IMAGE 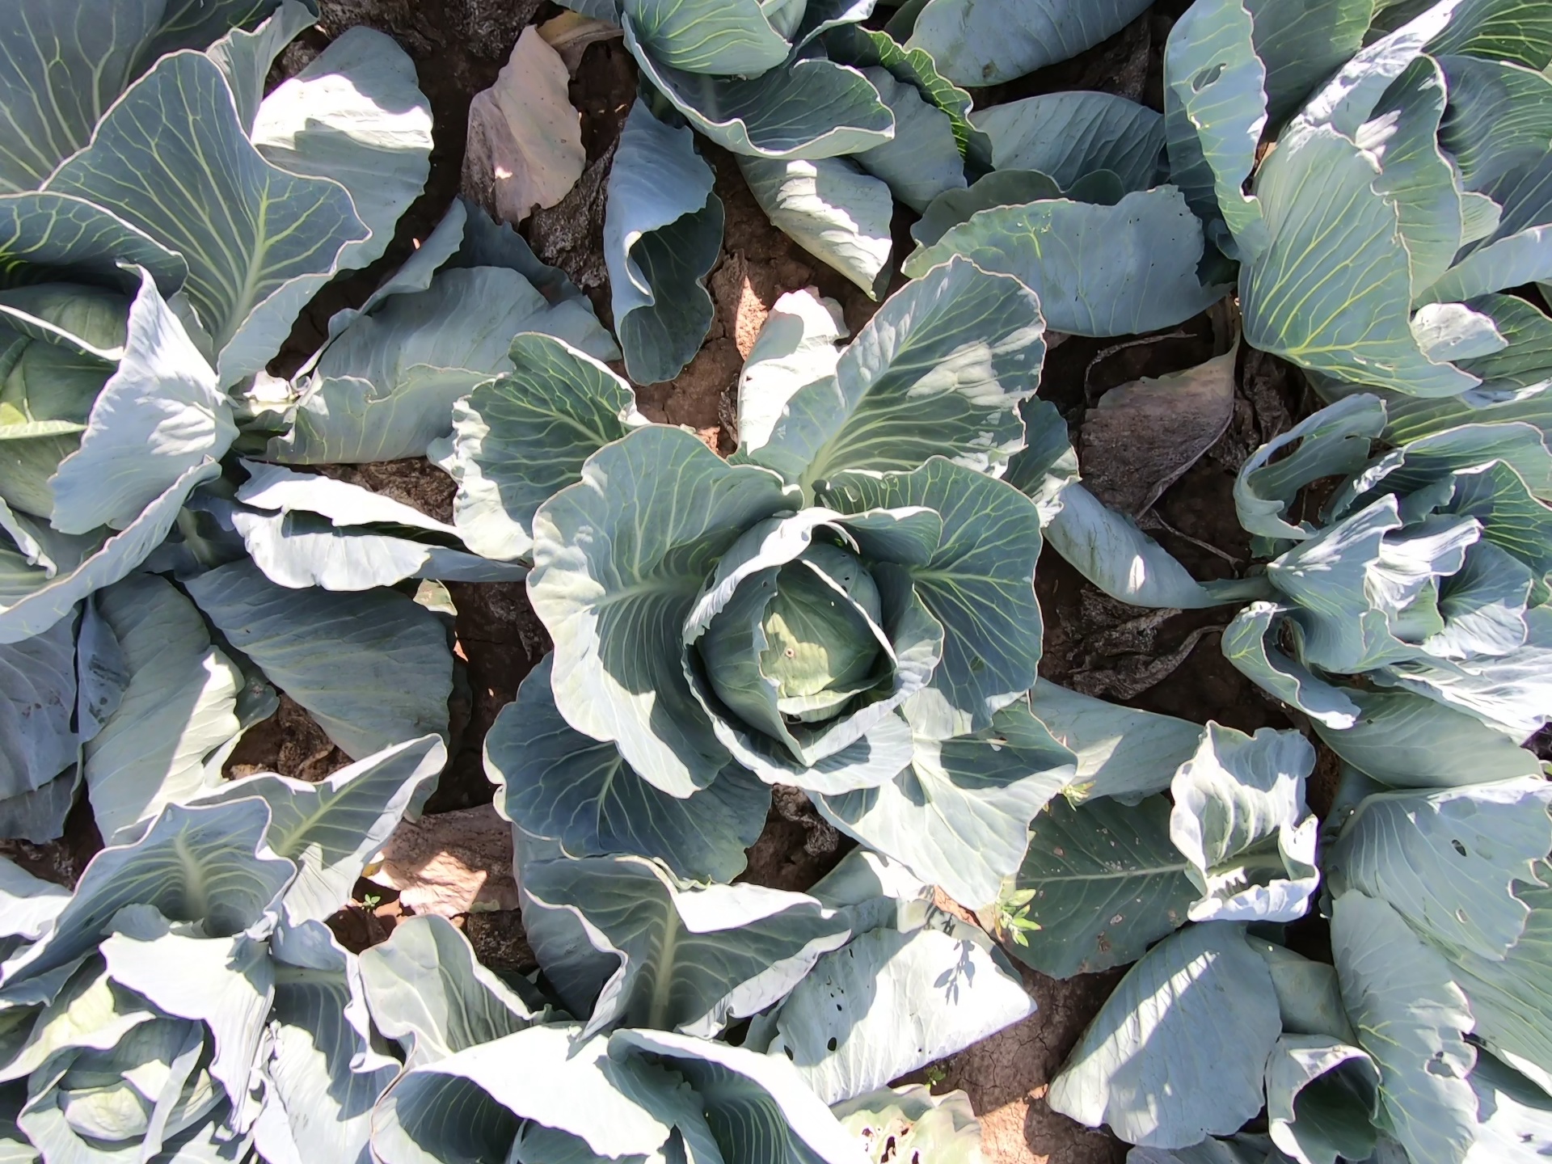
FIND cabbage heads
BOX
[712,539,884,717]
[2,285,184,516]
[656,0,808,60]
[513,1083,717,1160]
[1330,542,1444,644]
[44,961,248,1143]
